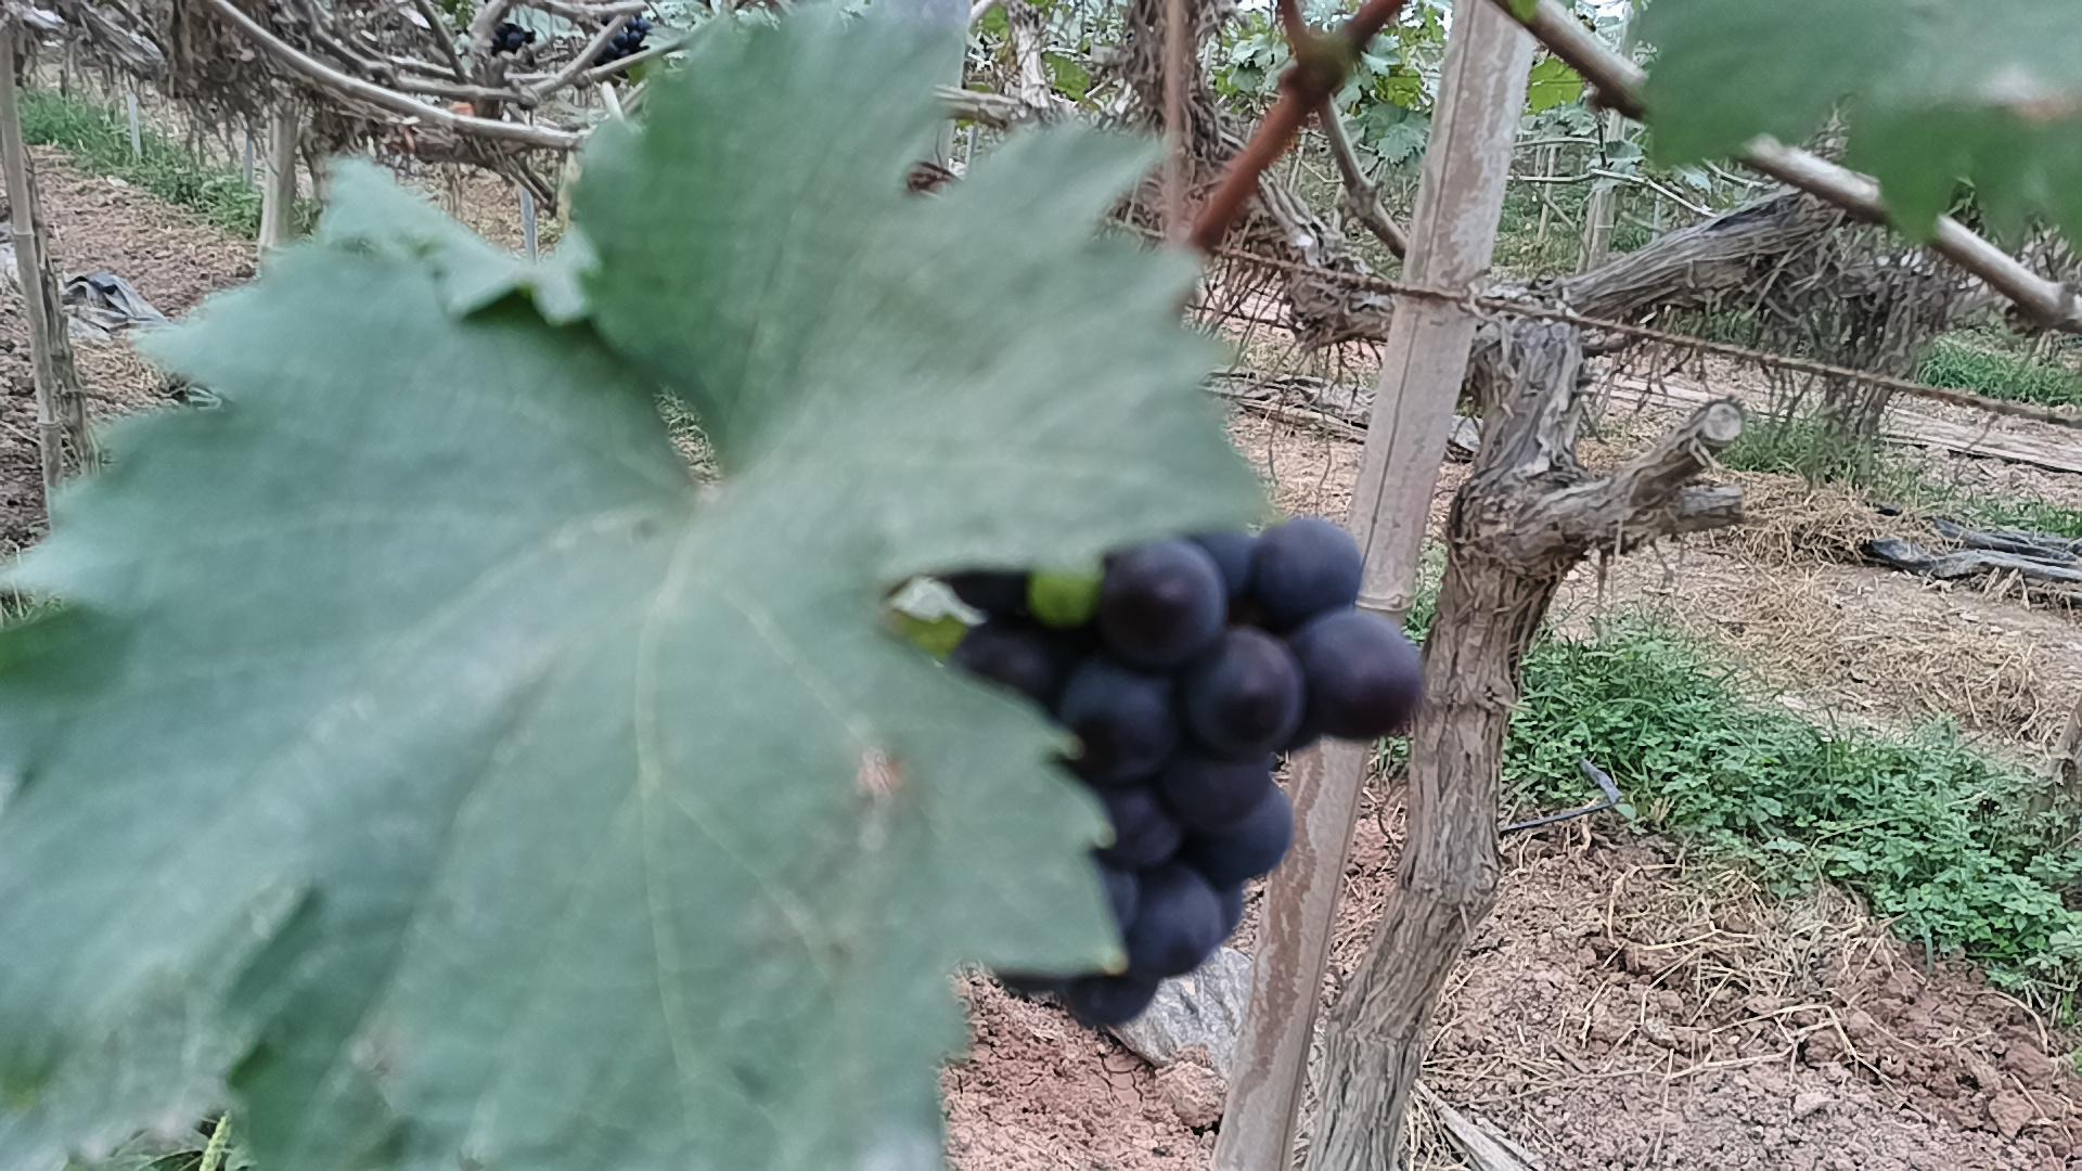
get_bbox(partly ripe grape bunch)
[946,518,1424,1030]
